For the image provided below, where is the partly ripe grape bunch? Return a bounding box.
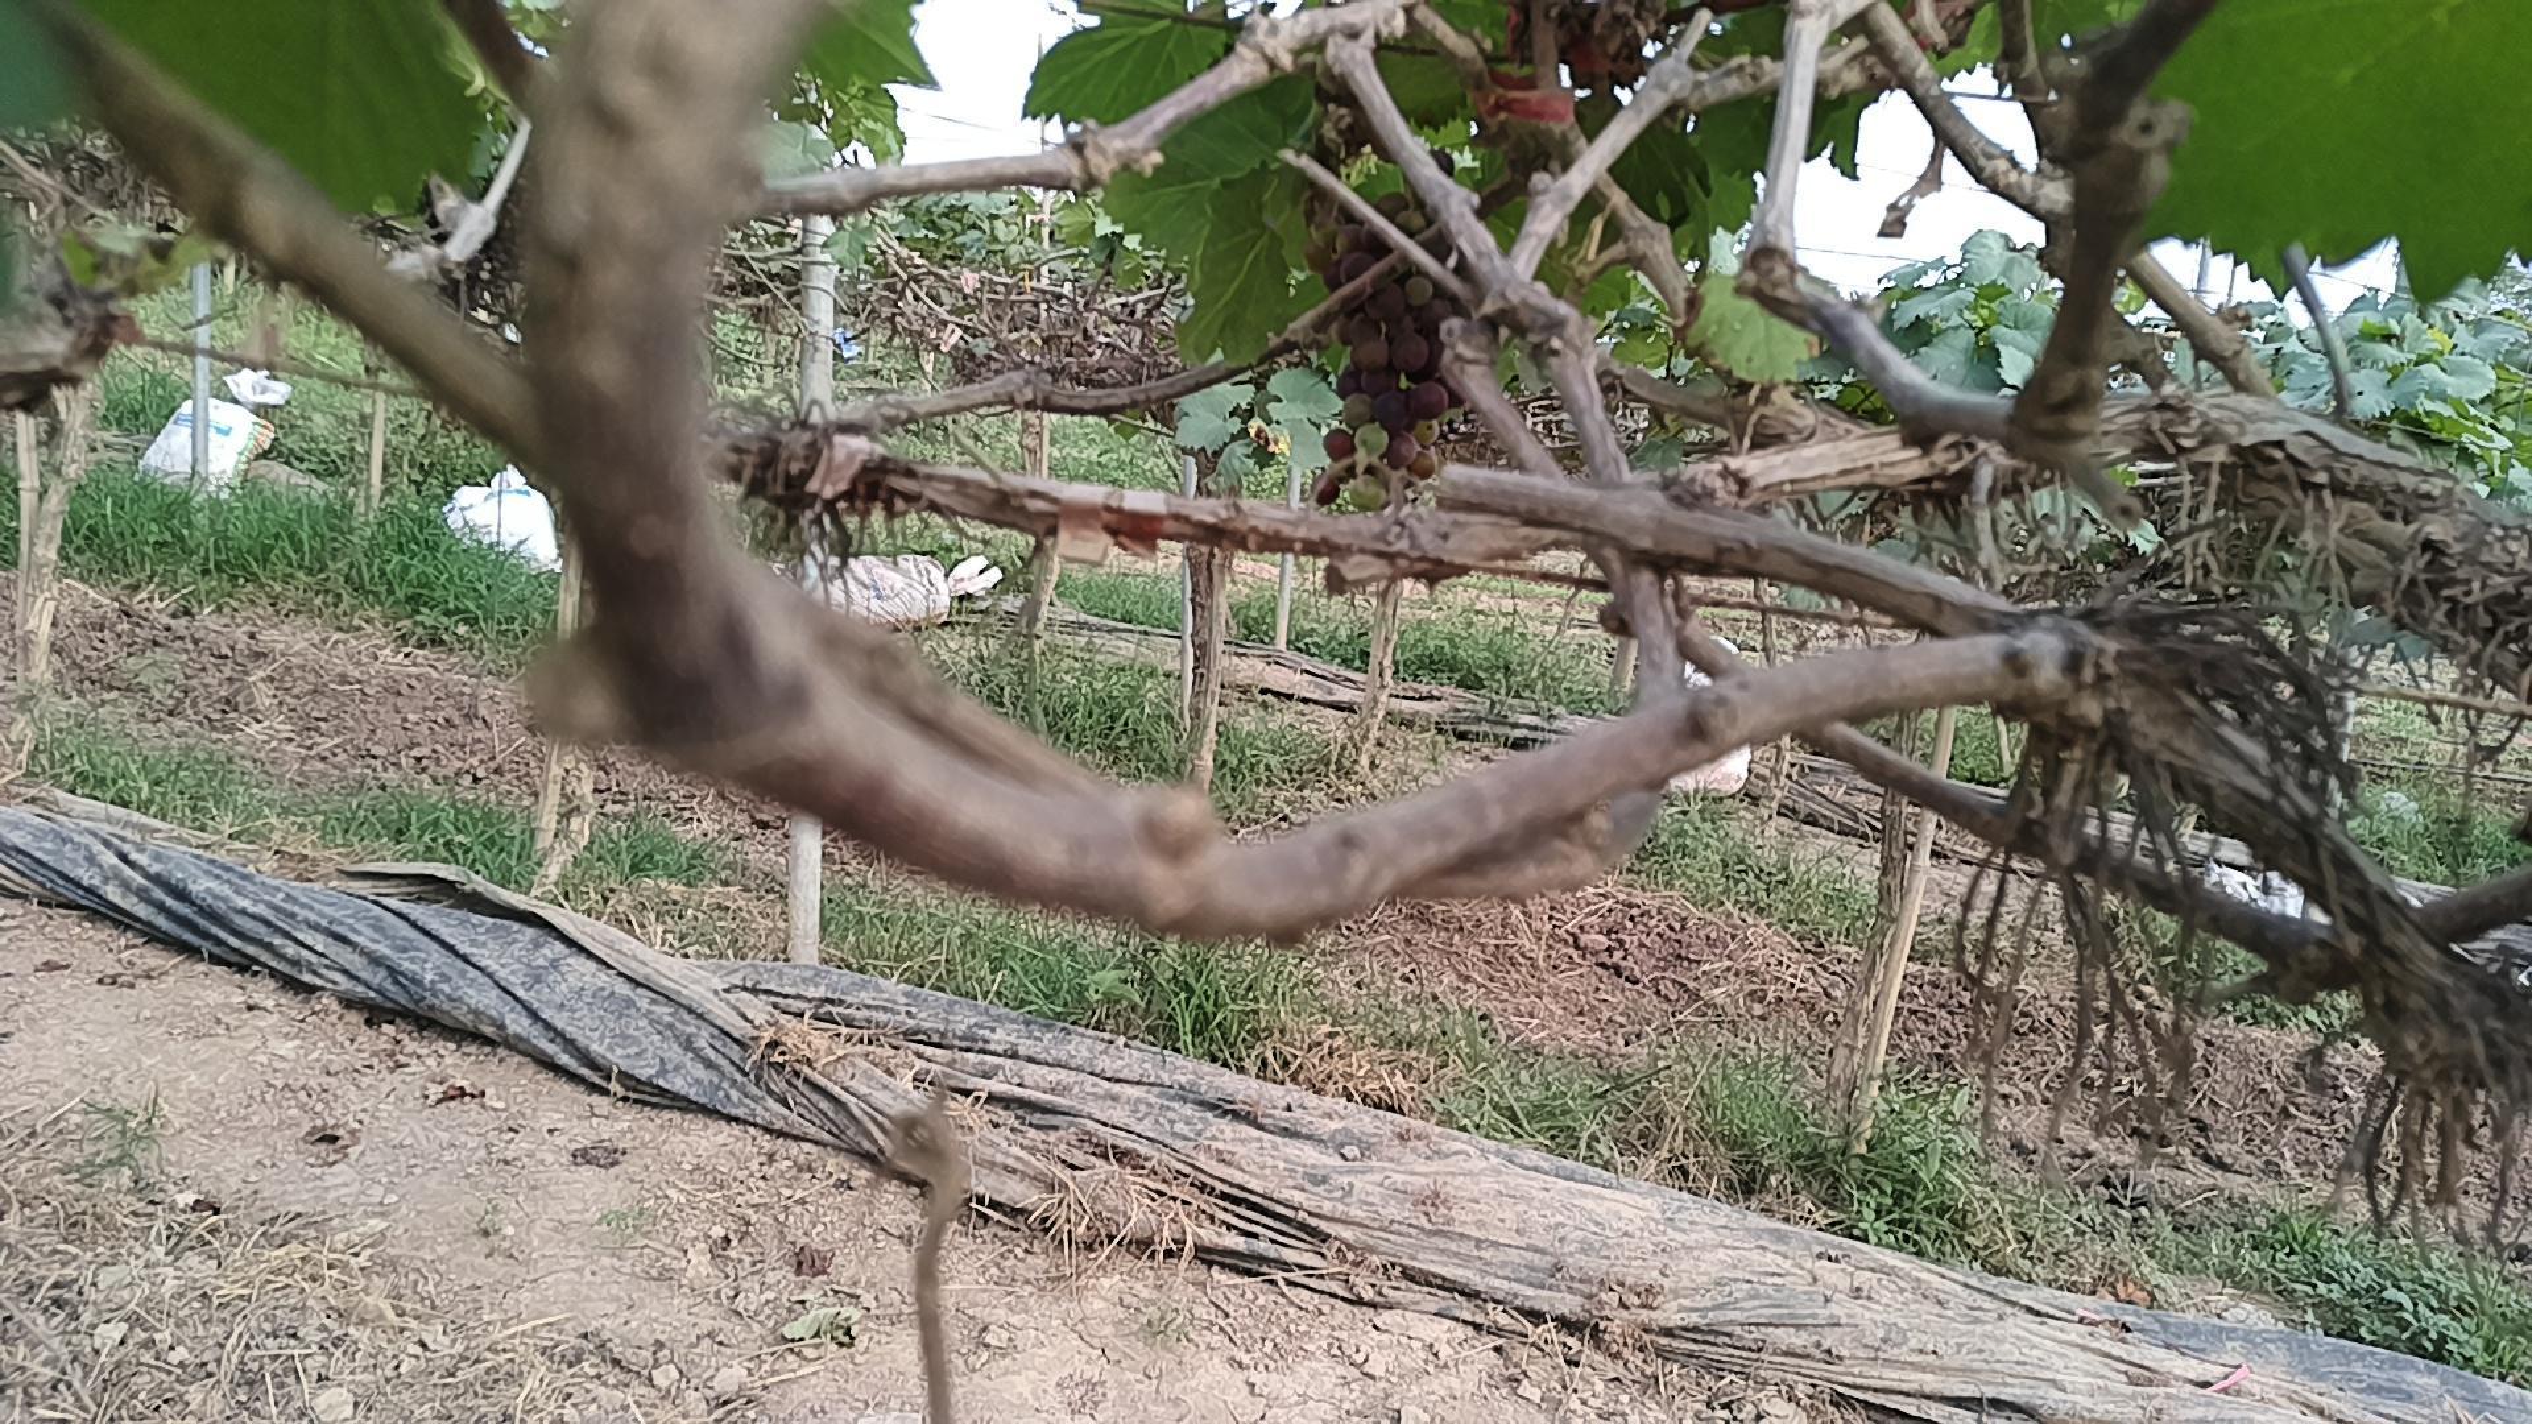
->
[1303,152,1498,512]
